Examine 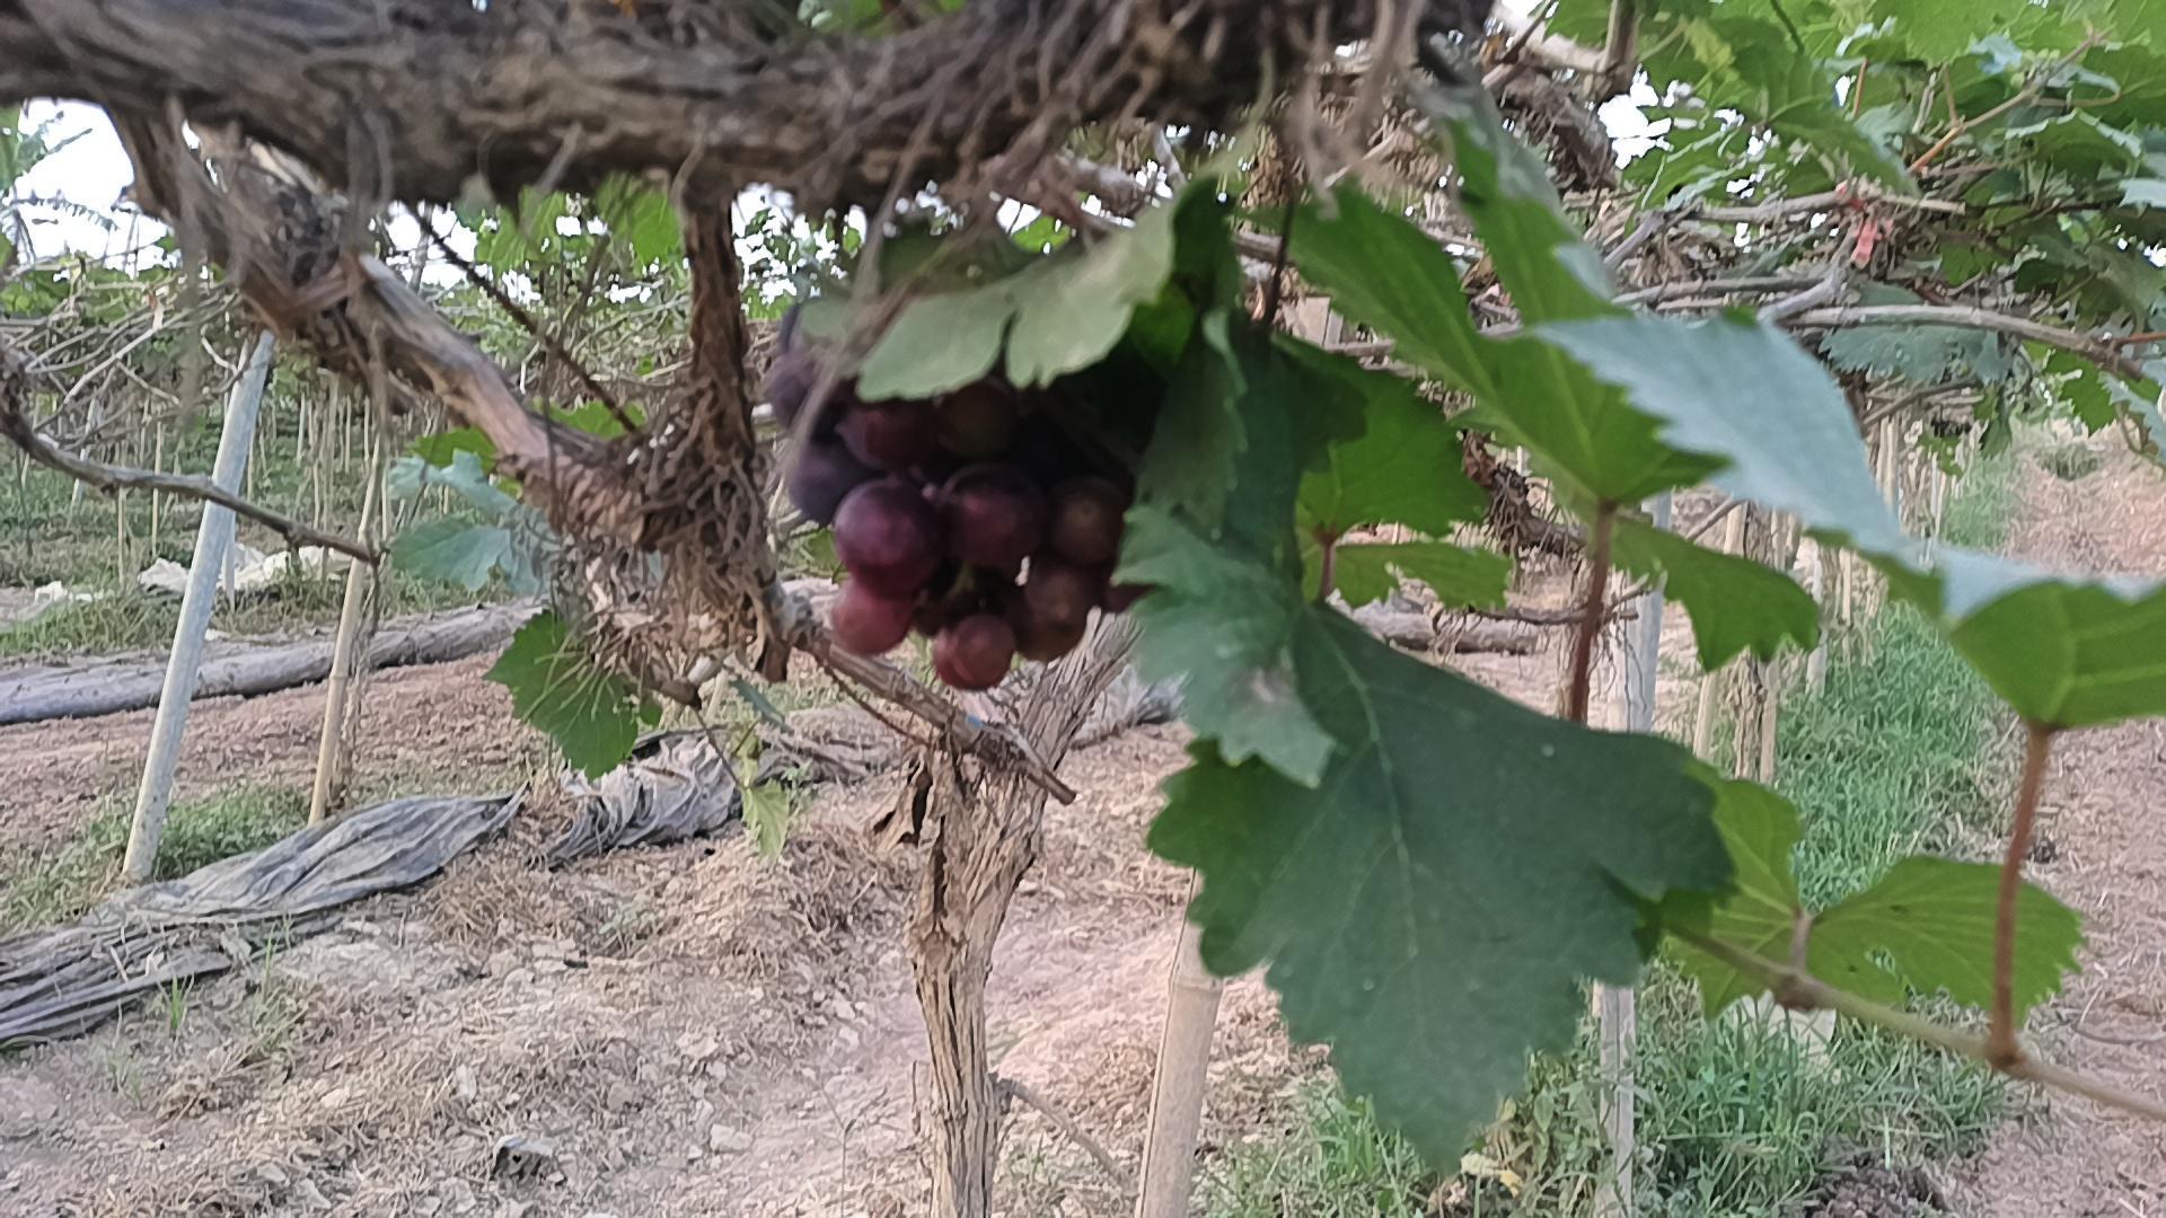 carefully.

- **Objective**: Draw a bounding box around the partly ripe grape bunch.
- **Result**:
[785,342,1165,689]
